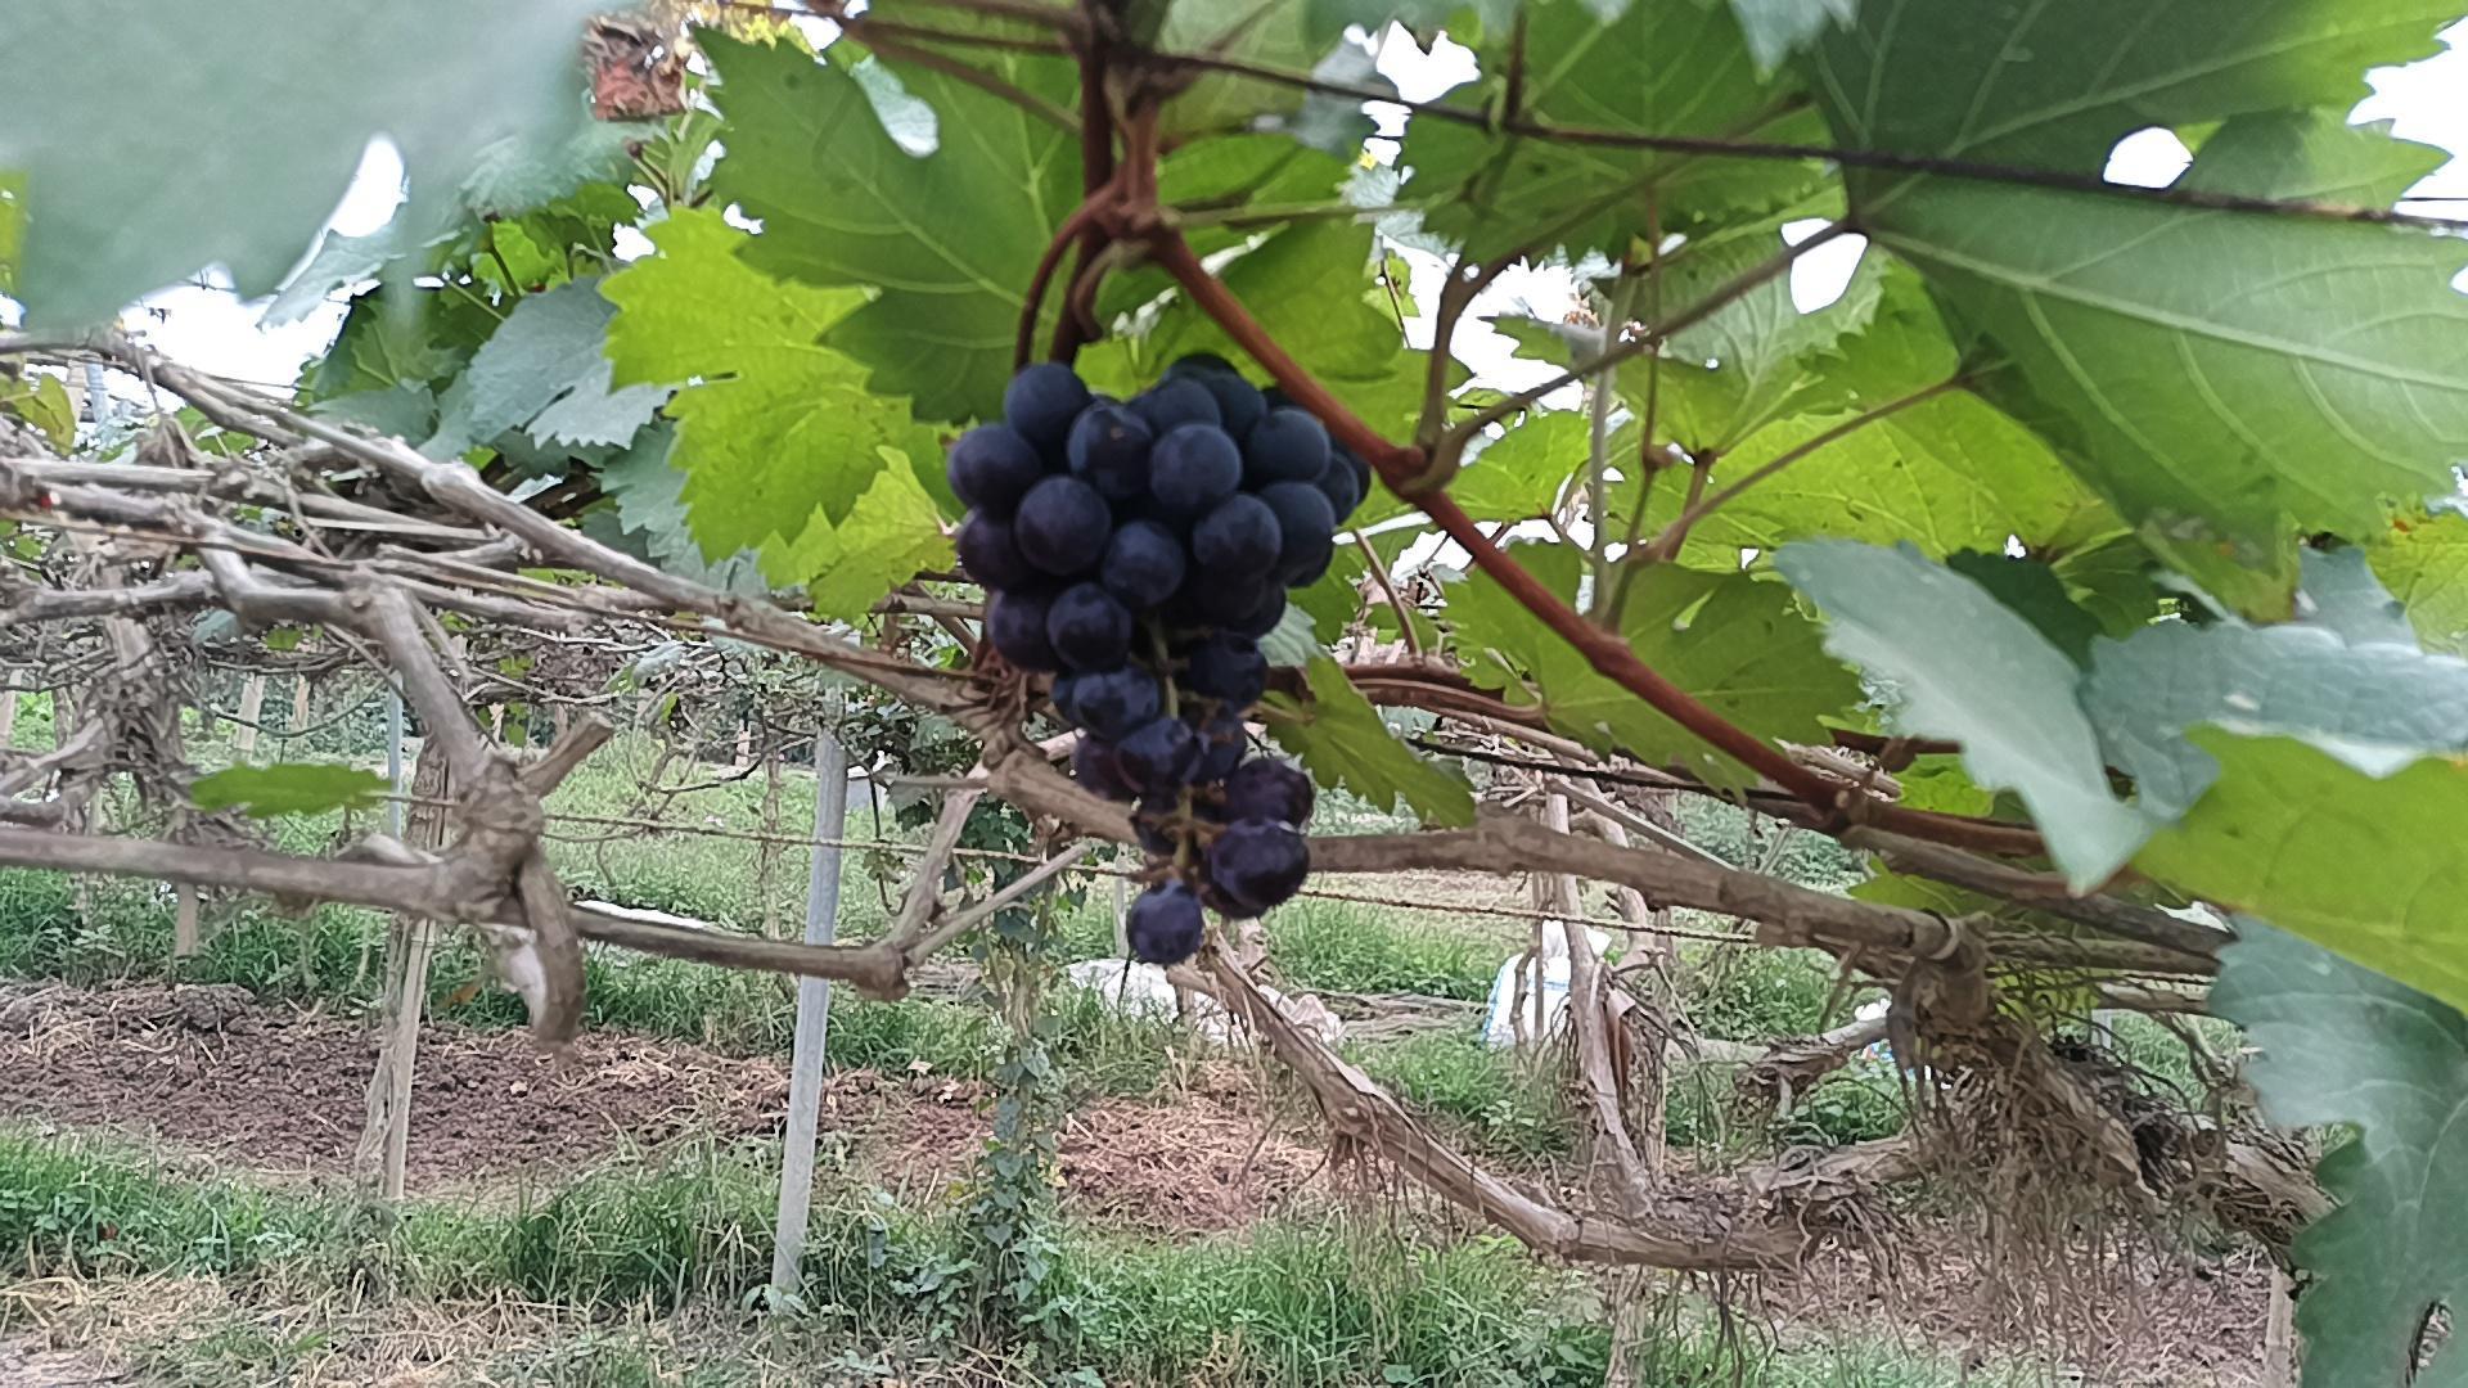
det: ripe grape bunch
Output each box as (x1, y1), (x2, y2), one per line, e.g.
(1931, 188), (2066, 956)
(950, 353), (1370, 964)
